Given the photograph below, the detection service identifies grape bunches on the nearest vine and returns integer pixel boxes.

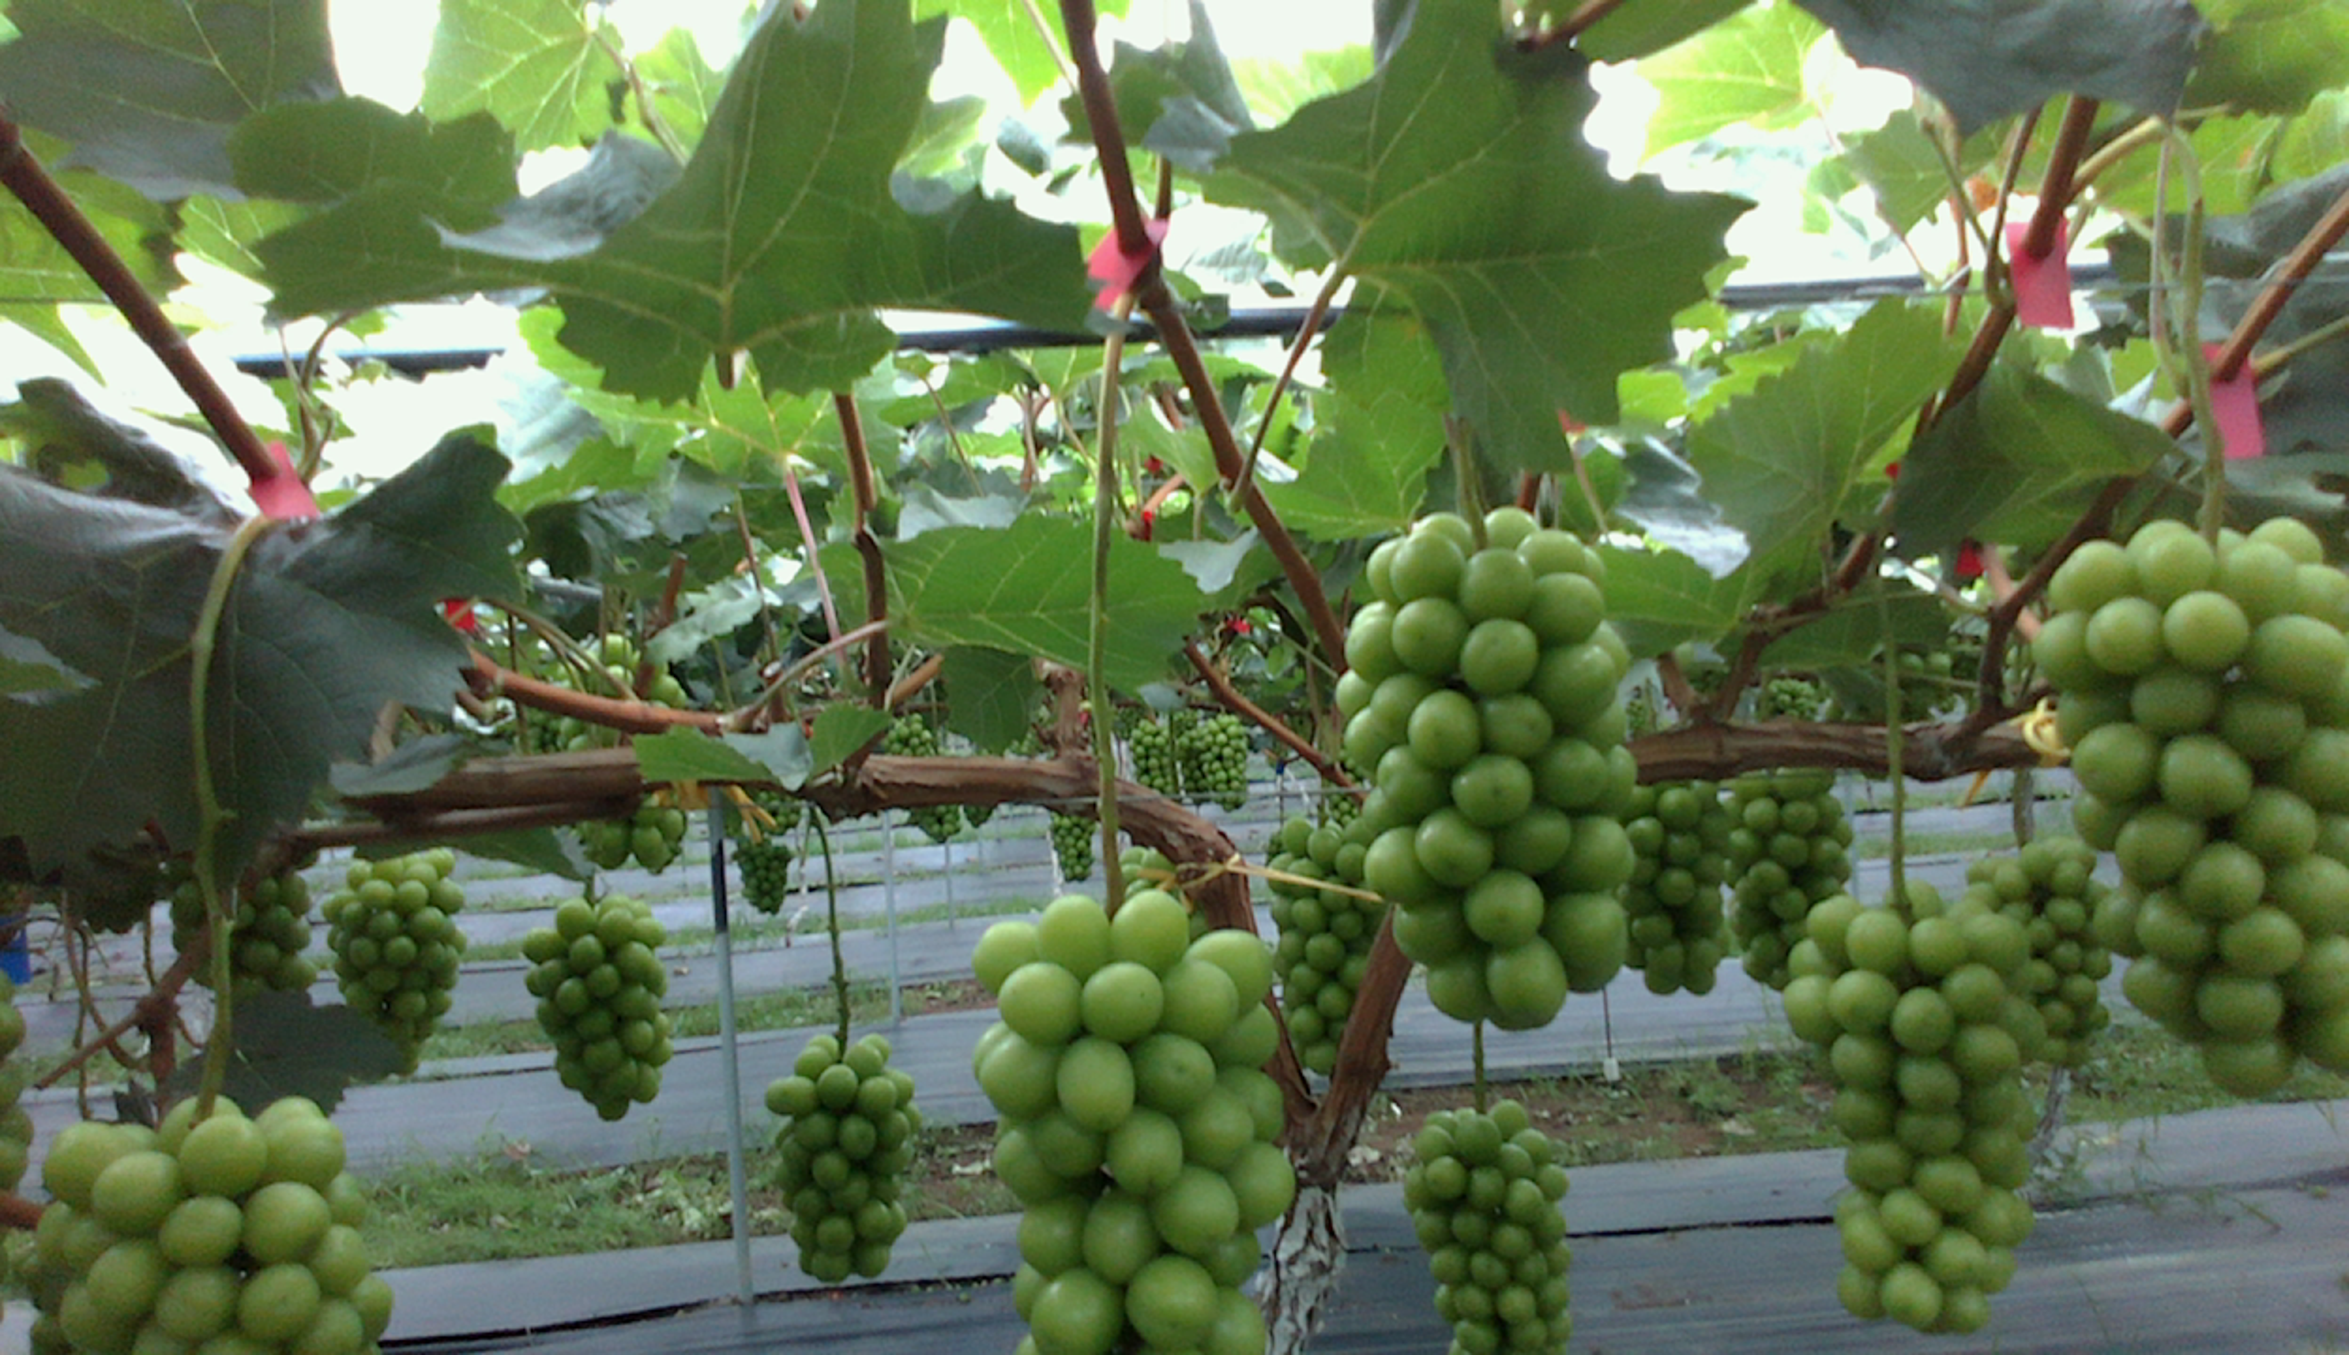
[2035,521,2347,1101]
[1336,504,1641,1029]
[971,888,1299,1351]
[26,1097,390,1353]
[1781,885,2046,1336]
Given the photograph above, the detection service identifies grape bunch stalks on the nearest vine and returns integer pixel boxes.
[1446,420,1489,548]
[186,516,262,1118]
[1090,337,1120,913]
[2168,124,2225,546]
[1886,668,1918,924]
